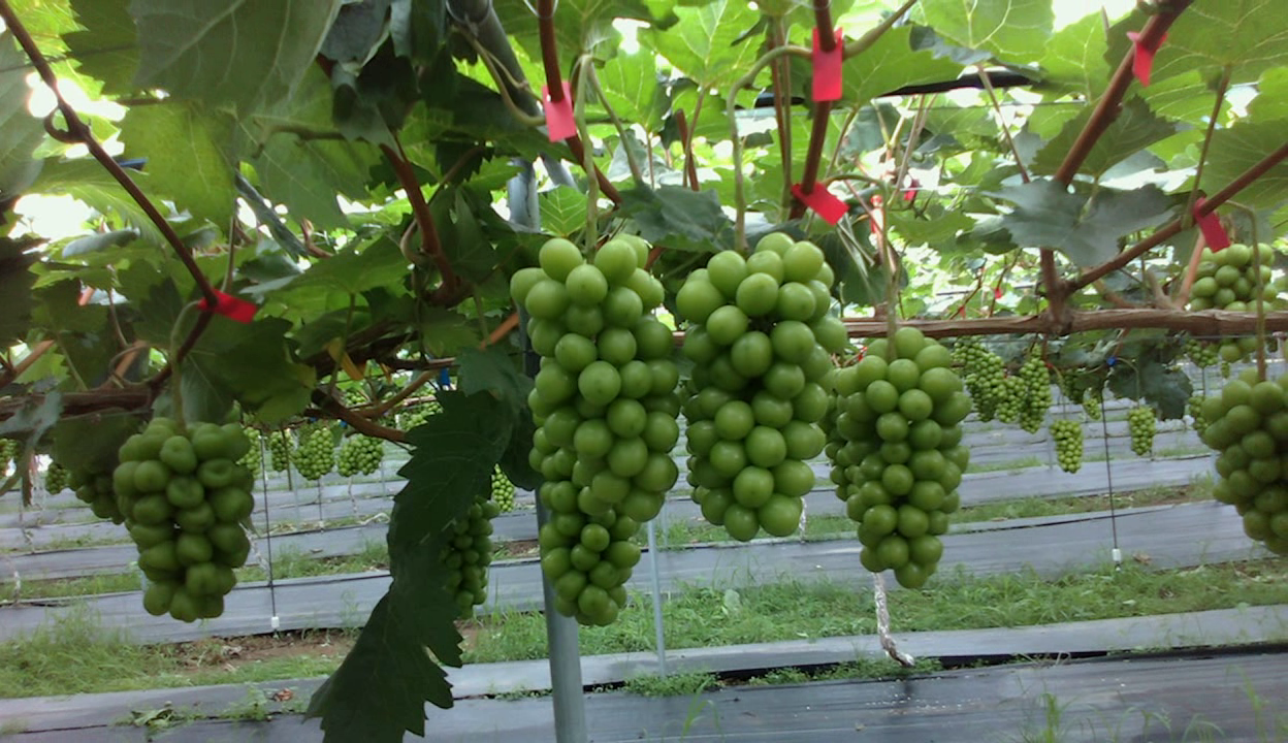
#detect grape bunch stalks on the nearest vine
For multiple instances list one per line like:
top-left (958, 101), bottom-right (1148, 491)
top-left (170, 300), bottom-right (202, 434)
top-left (727, 45), bottom-right (814, 253)
top-left (1221, 199), bottom-right (1266, 382)
top-left (822, 173), bottom-right (896, 360)
top-left (572, 55), bottom-right (644, 261)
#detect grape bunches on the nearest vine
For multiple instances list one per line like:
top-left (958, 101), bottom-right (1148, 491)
top-left (1199, 367), bottom-right (1285, 555)
top-left (528, 415), bottom-right (641, 626)
top-left (116, 418), bottom-right (252, 621)
top-left (679, 231), bottom-right (847, 544)
top-left (511, 232), bottom-right (679, 522)
top-left (835, 326), bottom-right (972, 589)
